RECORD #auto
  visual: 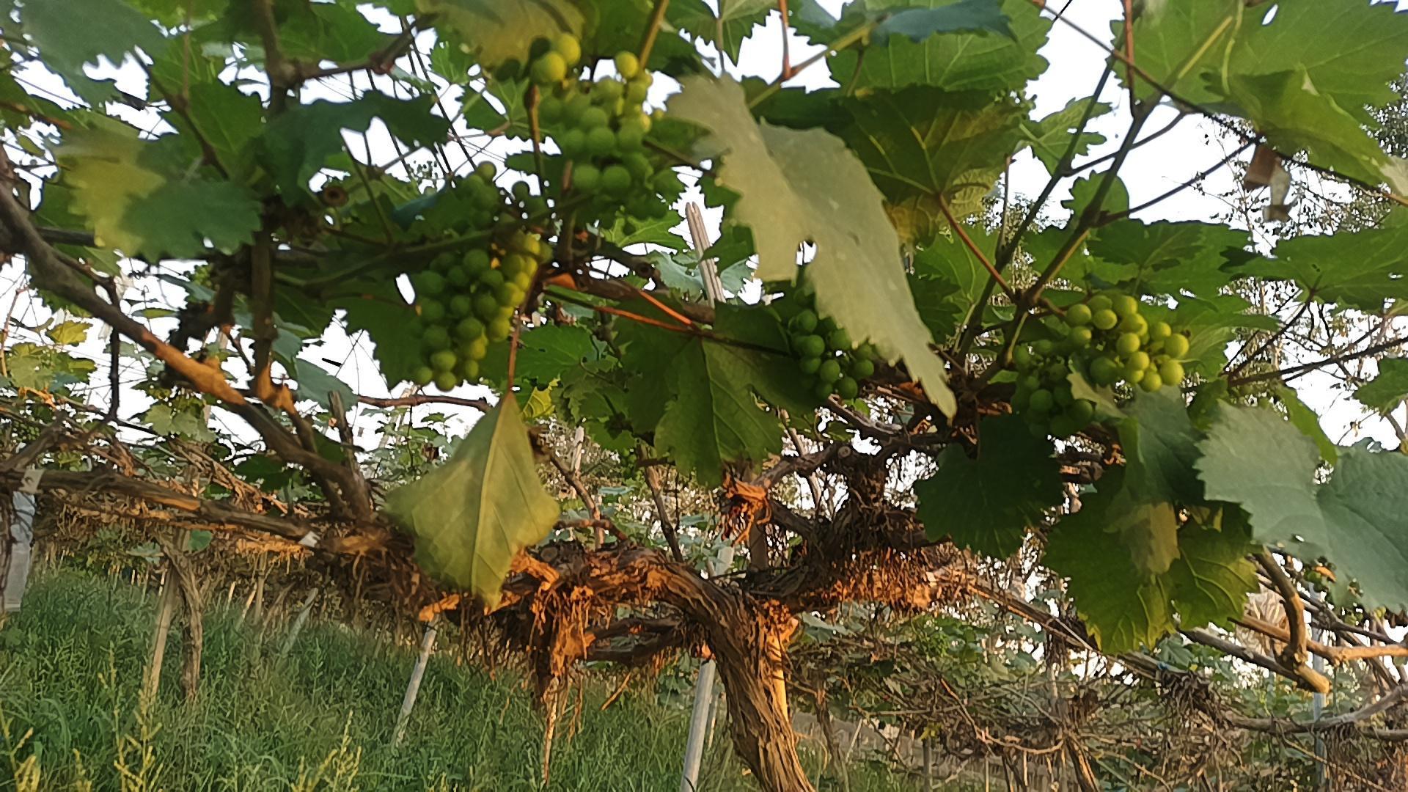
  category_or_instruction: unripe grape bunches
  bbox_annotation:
[1013,295,1189,436]
[530,34,683,238]
[788,290,878,398]
[411,162,549,390]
